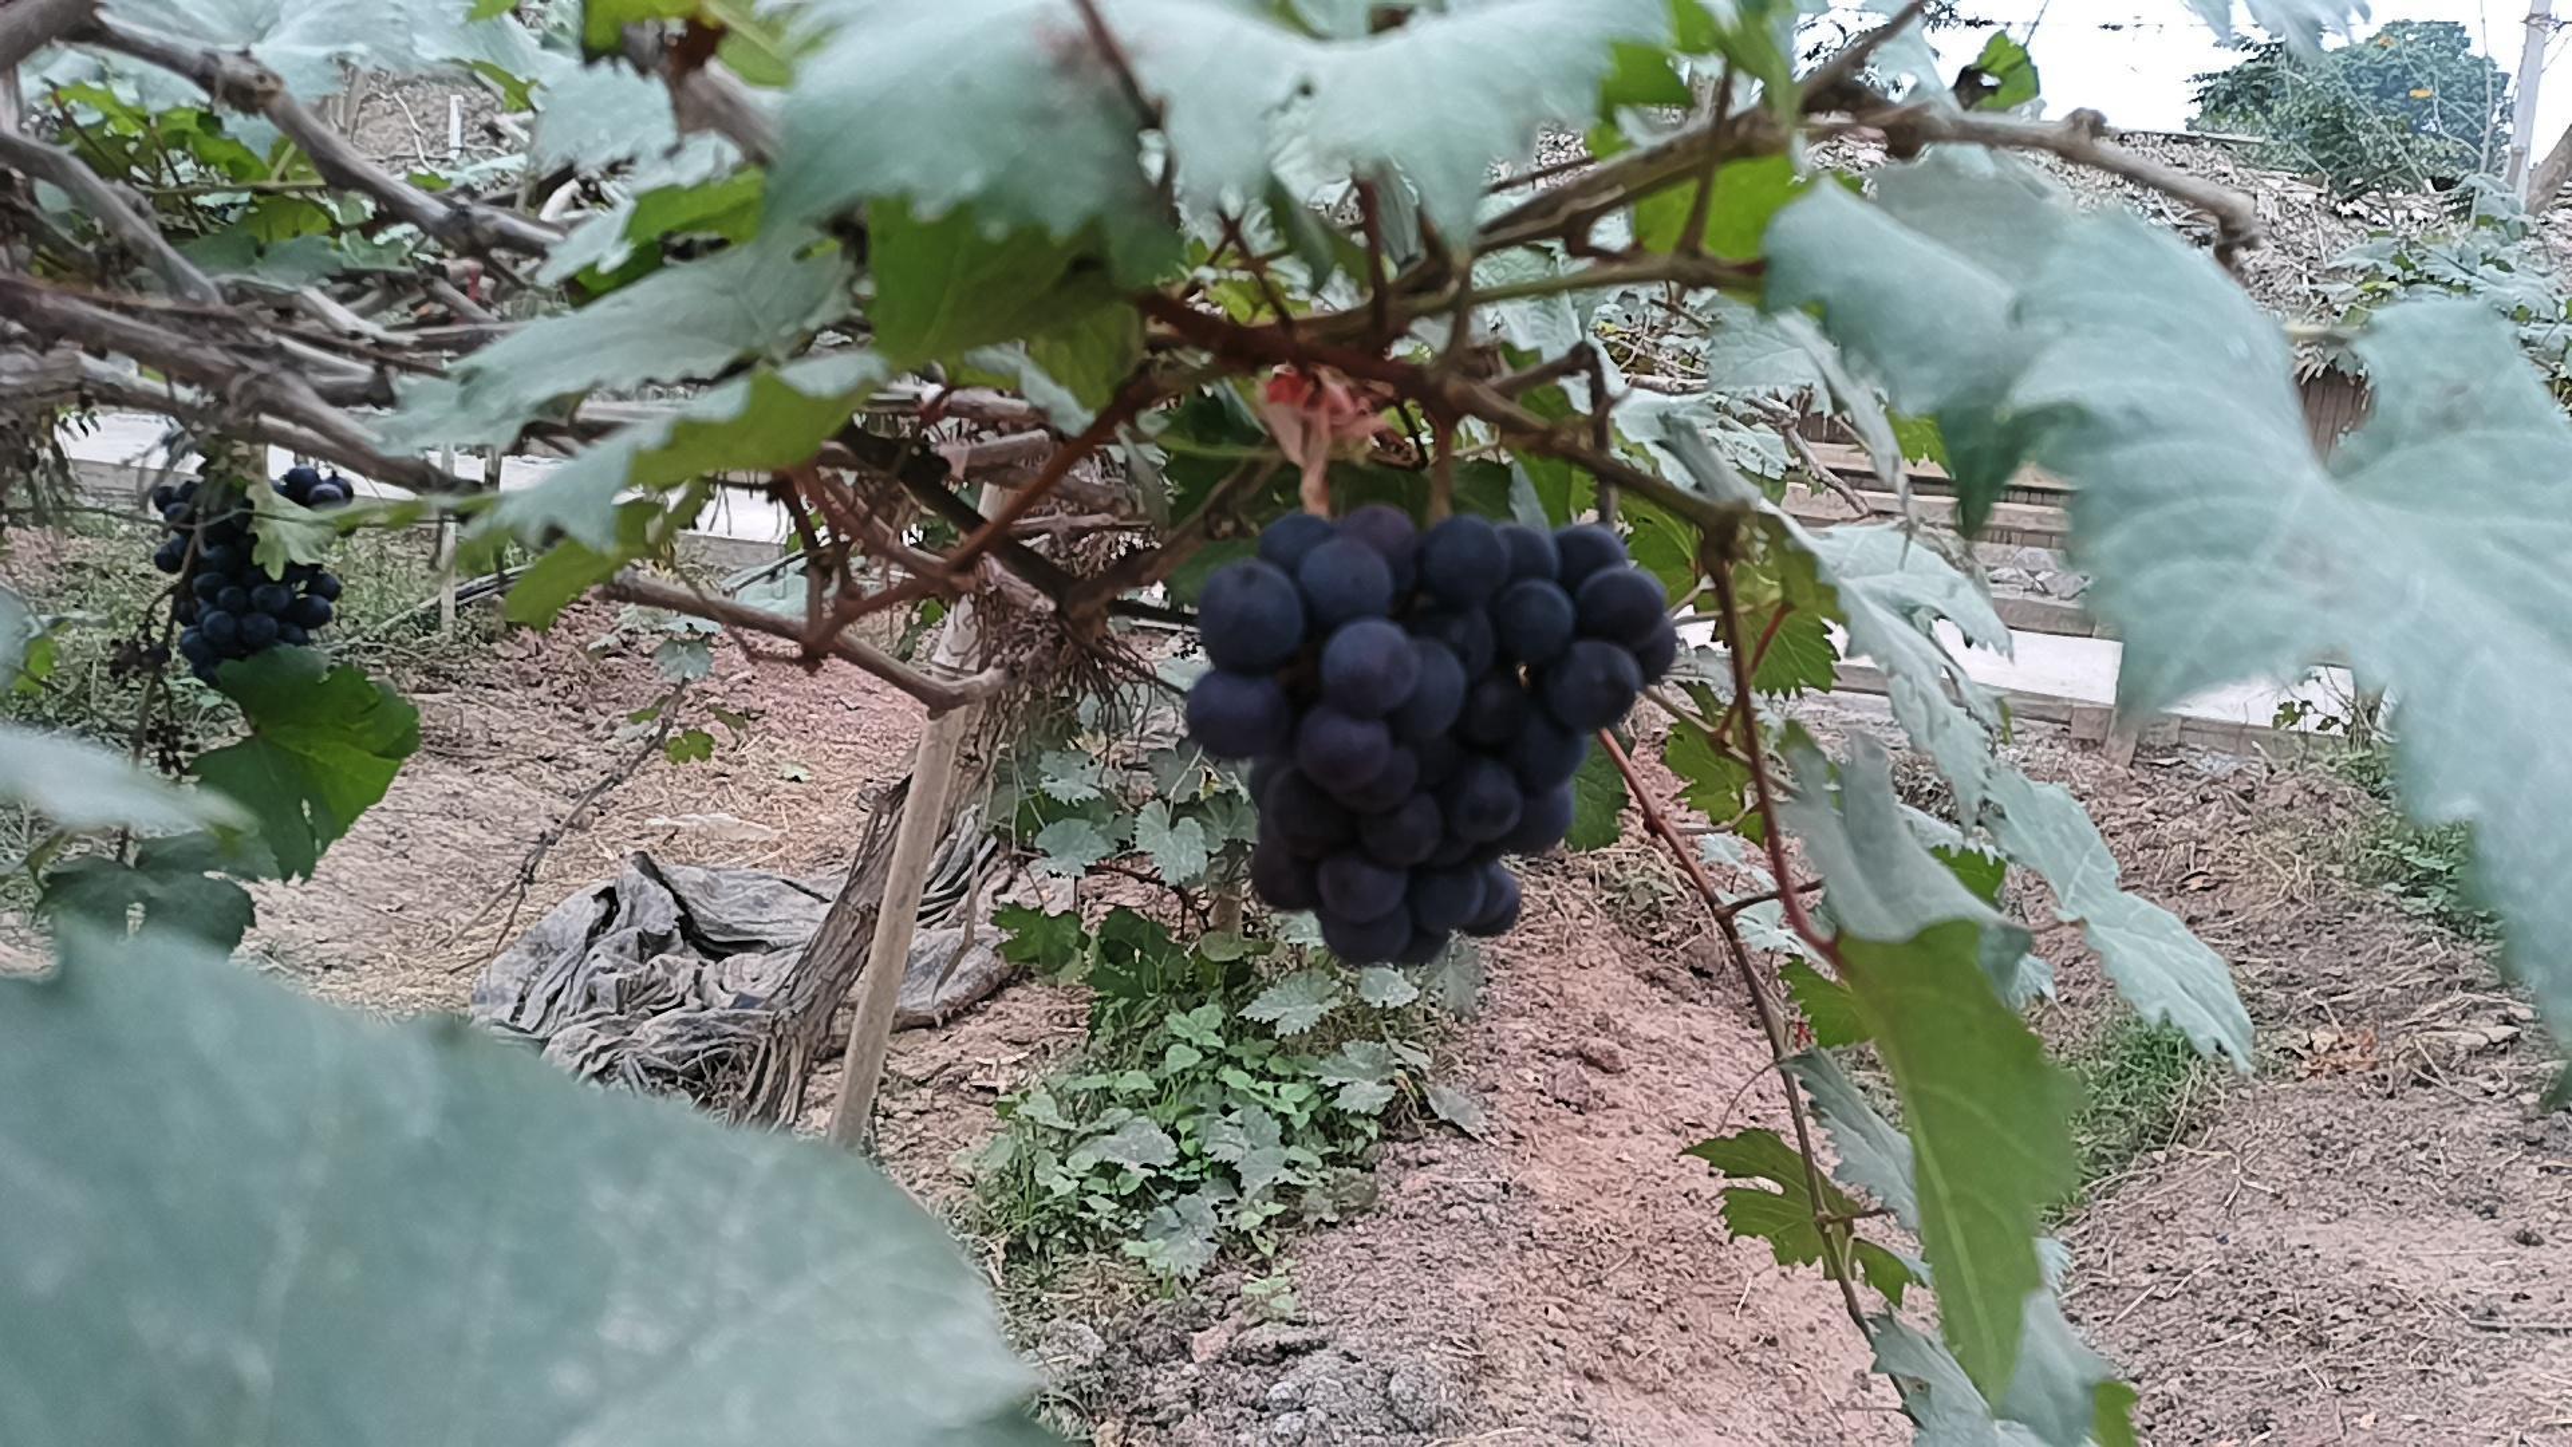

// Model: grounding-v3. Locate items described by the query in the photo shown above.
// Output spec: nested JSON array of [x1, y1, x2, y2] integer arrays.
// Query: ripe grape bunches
[[153, 480, 340, 683], [1184, 504, 1677, 965]]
